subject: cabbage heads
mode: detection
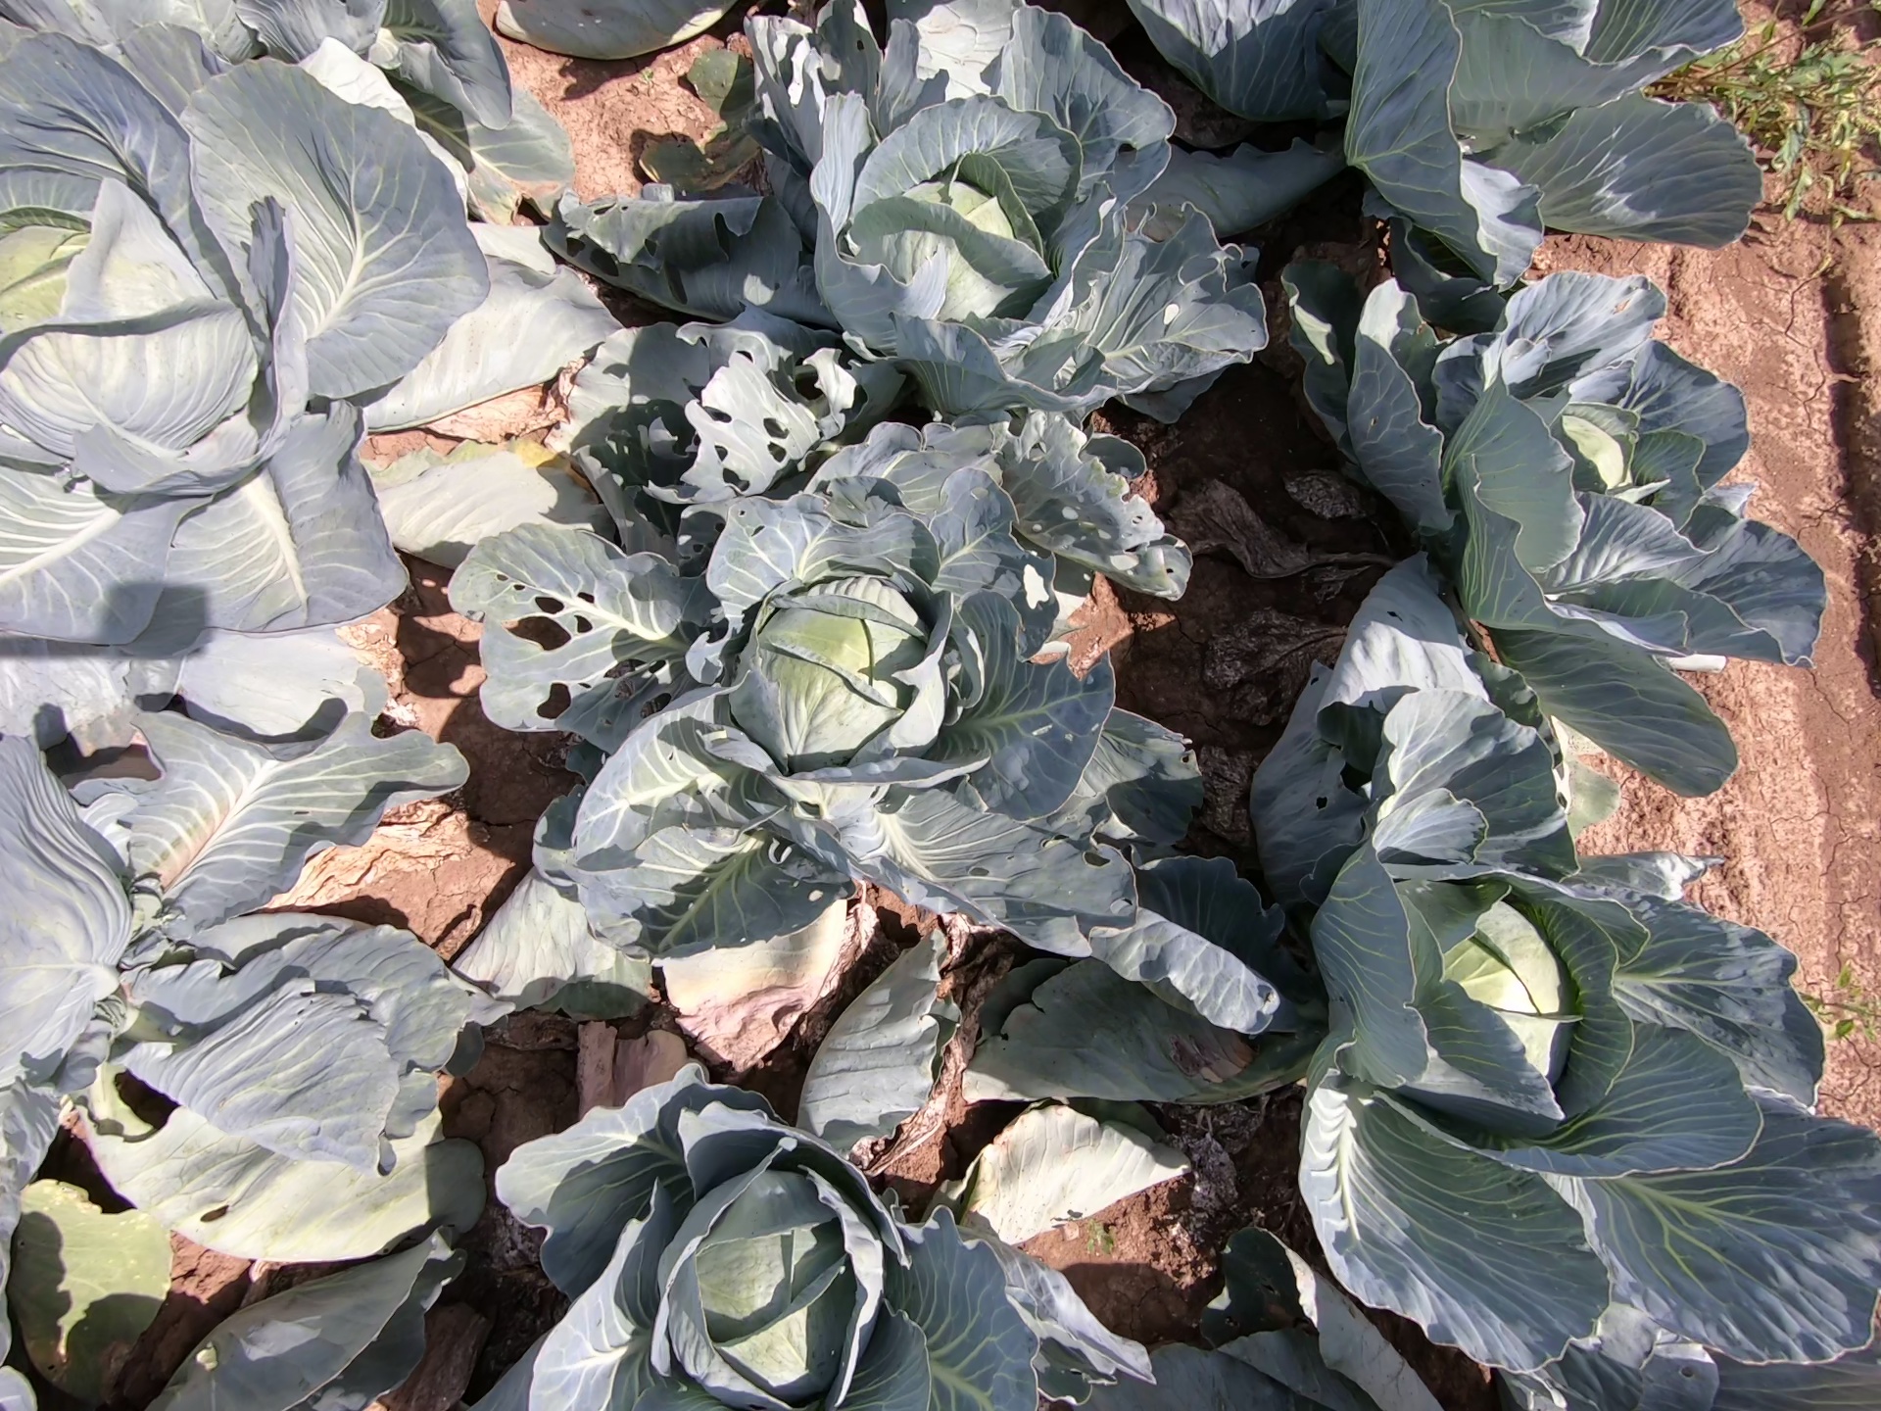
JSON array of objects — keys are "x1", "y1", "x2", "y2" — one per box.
[
  {"x1": 668, "y1": 1172, "x2": 866, "y2": 1396},
  {"x1": 0, "y1": 213, "x2": 243, "y2": 464},
  {"x1": 743, "y1": 582, "x2": 928, "y2": 770},
  {"x1": 1399, "y1": 886, "x2": 1578, "y2": 1110},
  {"x1": 1524, "y1": 409, "x2": 1638, "y2": 526},
  {"x1": 863, "y1": 171, "x2": 1020, "y2": 319}
]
